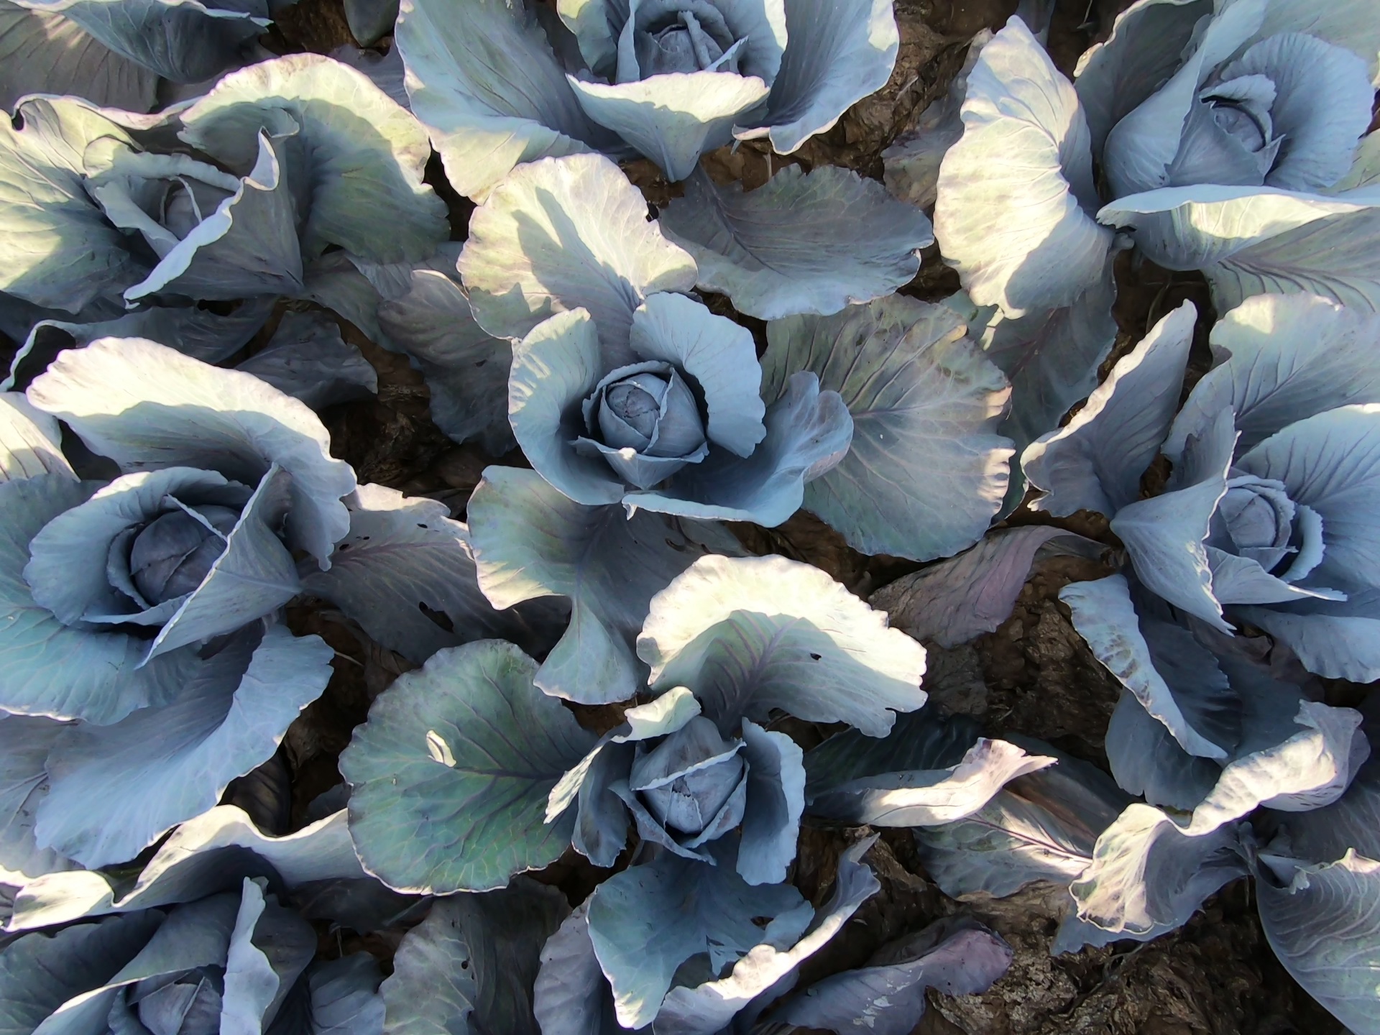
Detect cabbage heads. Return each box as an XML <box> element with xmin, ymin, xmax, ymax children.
<box><xmin>1188</xmin><ymin>488</ymin><xmax>1279</xmax><ymax>574</ymax></box>
<box><xmin>1169</xmin><ymin>103</ymin><xmax>1272</xmax><ymax>193</ymax></box>
<box><xmin>640</xmin><ymin>23</ymin><xmax>727</xmax><ymax>108</ymax></box>
<box><xmin>598</xmin><ymin>375</ymin><xmax>689</xmax><ymax>451</ymax></box>
<box><xmin>134</xmin><ymin>907</ymin><xmax>283</xmax><ymax>1034</ymax></box>
<box><xmin>647</xmin><ymin>733</ymin><xmax>742</xmax><ymax>839</ymax></box>
<box><xmin>162</xmin><ymin>181</ymin><xmax>259</xmax><ymax>285</ymax></box>
<box><xmin>126</xmin><ymin>510</ymin><xmax>268</xmax><ymax>627</ymax></box>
